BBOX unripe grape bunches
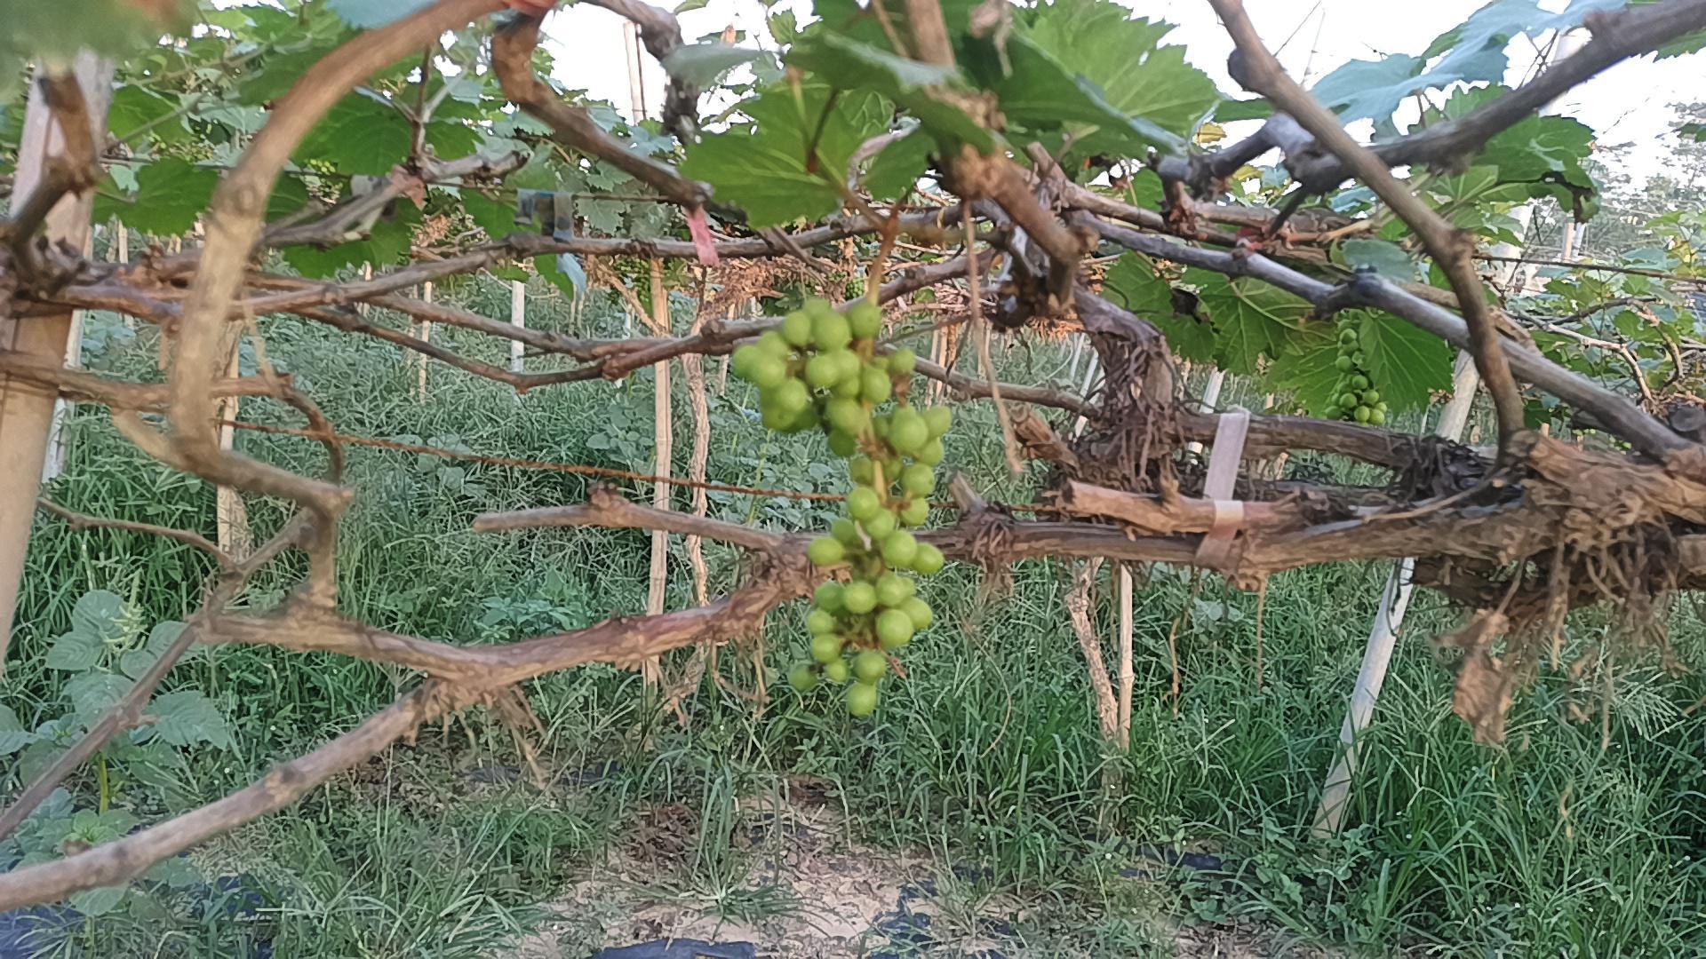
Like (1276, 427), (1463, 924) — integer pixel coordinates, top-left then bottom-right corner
(734, 298), (950, 716)
(1334, 313), (1391, 425)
